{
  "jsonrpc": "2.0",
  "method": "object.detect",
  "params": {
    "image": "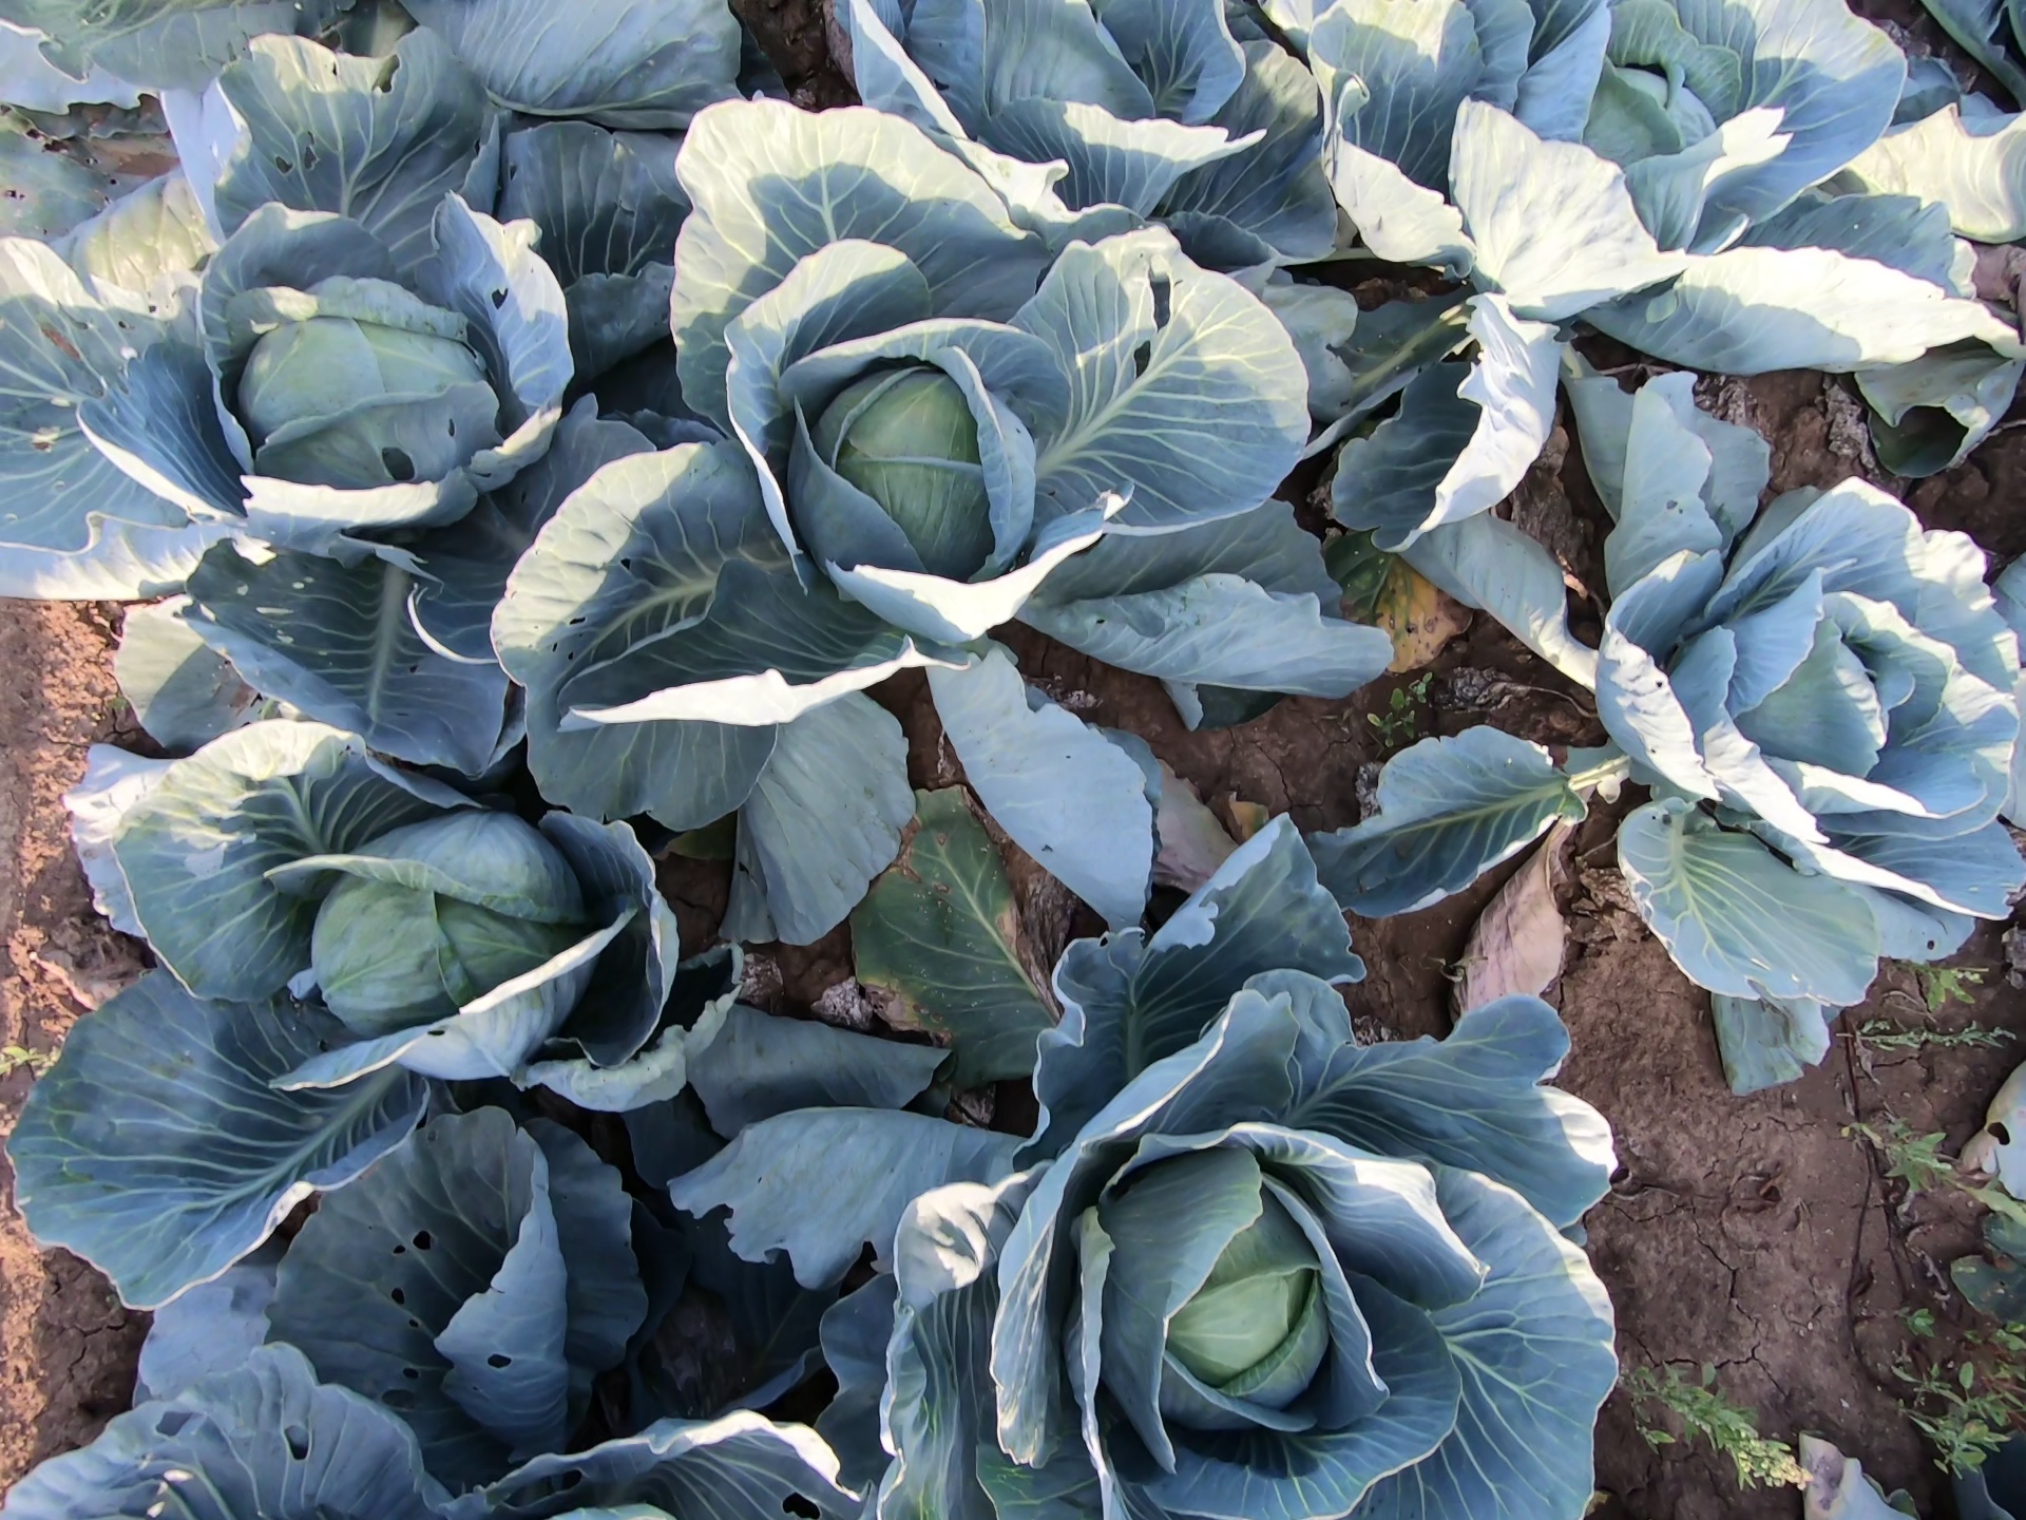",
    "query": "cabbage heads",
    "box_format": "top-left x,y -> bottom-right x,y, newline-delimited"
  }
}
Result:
313,820 -> 572,1031
947,0 -> 1140,189
810,365 -> 1027,590
1094,1166 -> 1341,1428
238,290 -> 497,482
1544,68 -> 1724,256
1700,630 -> 1879,797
